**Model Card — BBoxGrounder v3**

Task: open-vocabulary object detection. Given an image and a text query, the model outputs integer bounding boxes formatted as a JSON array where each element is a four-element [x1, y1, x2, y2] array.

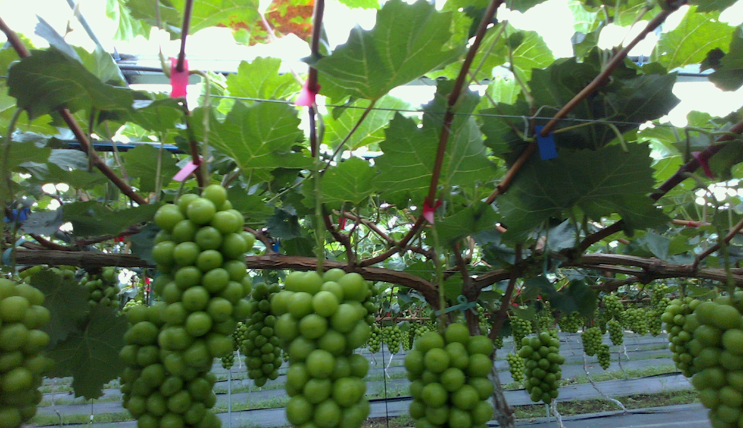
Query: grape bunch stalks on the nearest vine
[[691, 175, 737, 303], [314, 106, 325, 274], [190, 69, 211, 187], [432, 226, 445, 332]]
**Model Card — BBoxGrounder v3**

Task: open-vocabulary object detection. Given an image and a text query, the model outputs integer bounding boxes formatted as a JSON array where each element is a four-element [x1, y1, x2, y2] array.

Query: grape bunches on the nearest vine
[[270, 268, 370, 427], [686, 292, 742, 427], [116, 304, 221, 427], [152, 185, 255, 376], [403, 323, 495, 427], [0, 279, 51, 427]]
